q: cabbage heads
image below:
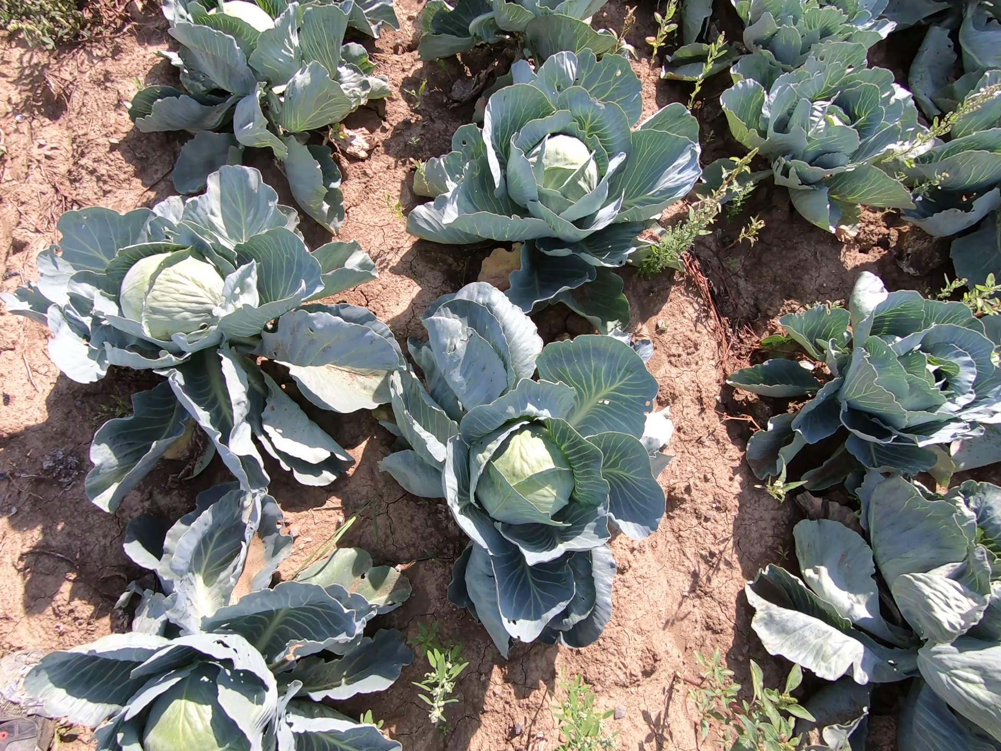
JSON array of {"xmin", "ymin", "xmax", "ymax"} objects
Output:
[
  {"xmin": 519, "ymin": 131, "xmax": 602, "ymax": 212},
  {"xmin": 803, "ymin": 101, "xmax": 850, "ymax": 148},
  {"xmin": 142, "ymin": 660, "xmax": 259, "ymax": 747},
  {"xmin": 117, "ymin": 251, "xmax": 230, "ymax": 346},
  {"xmin": 205, "ymin": 1, "xmax": 278, "ymax": 71},
  {"xmin": 476, "ymin": 422, "xmax": 576, "ymax": 523}
]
